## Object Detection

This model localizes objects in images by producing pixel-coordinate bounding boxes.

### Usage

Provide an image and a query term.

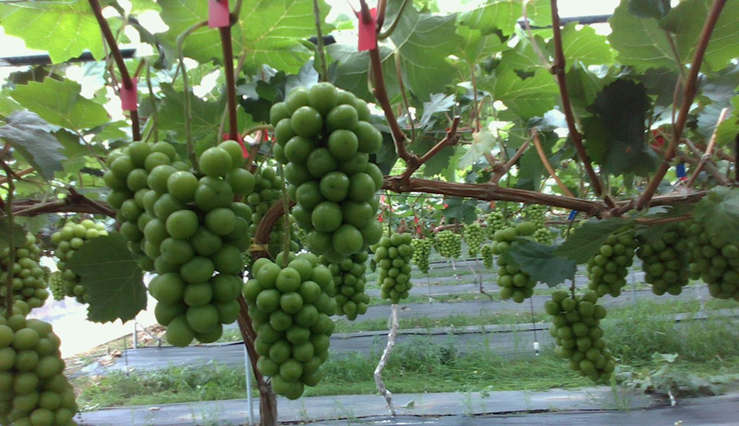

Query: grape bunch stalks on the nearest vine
[313,0,328,83]
[1,158,15,318]
[278,162,291,266]
[177,19,210,176]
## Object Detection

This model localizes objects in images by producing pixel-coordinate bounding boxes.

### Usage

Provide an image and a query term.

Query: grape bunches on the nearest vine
[102,141,188,272]
[143,140,255,346]
[271,80,384,264]
[242,251,337,400]
[0,313,77,424]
